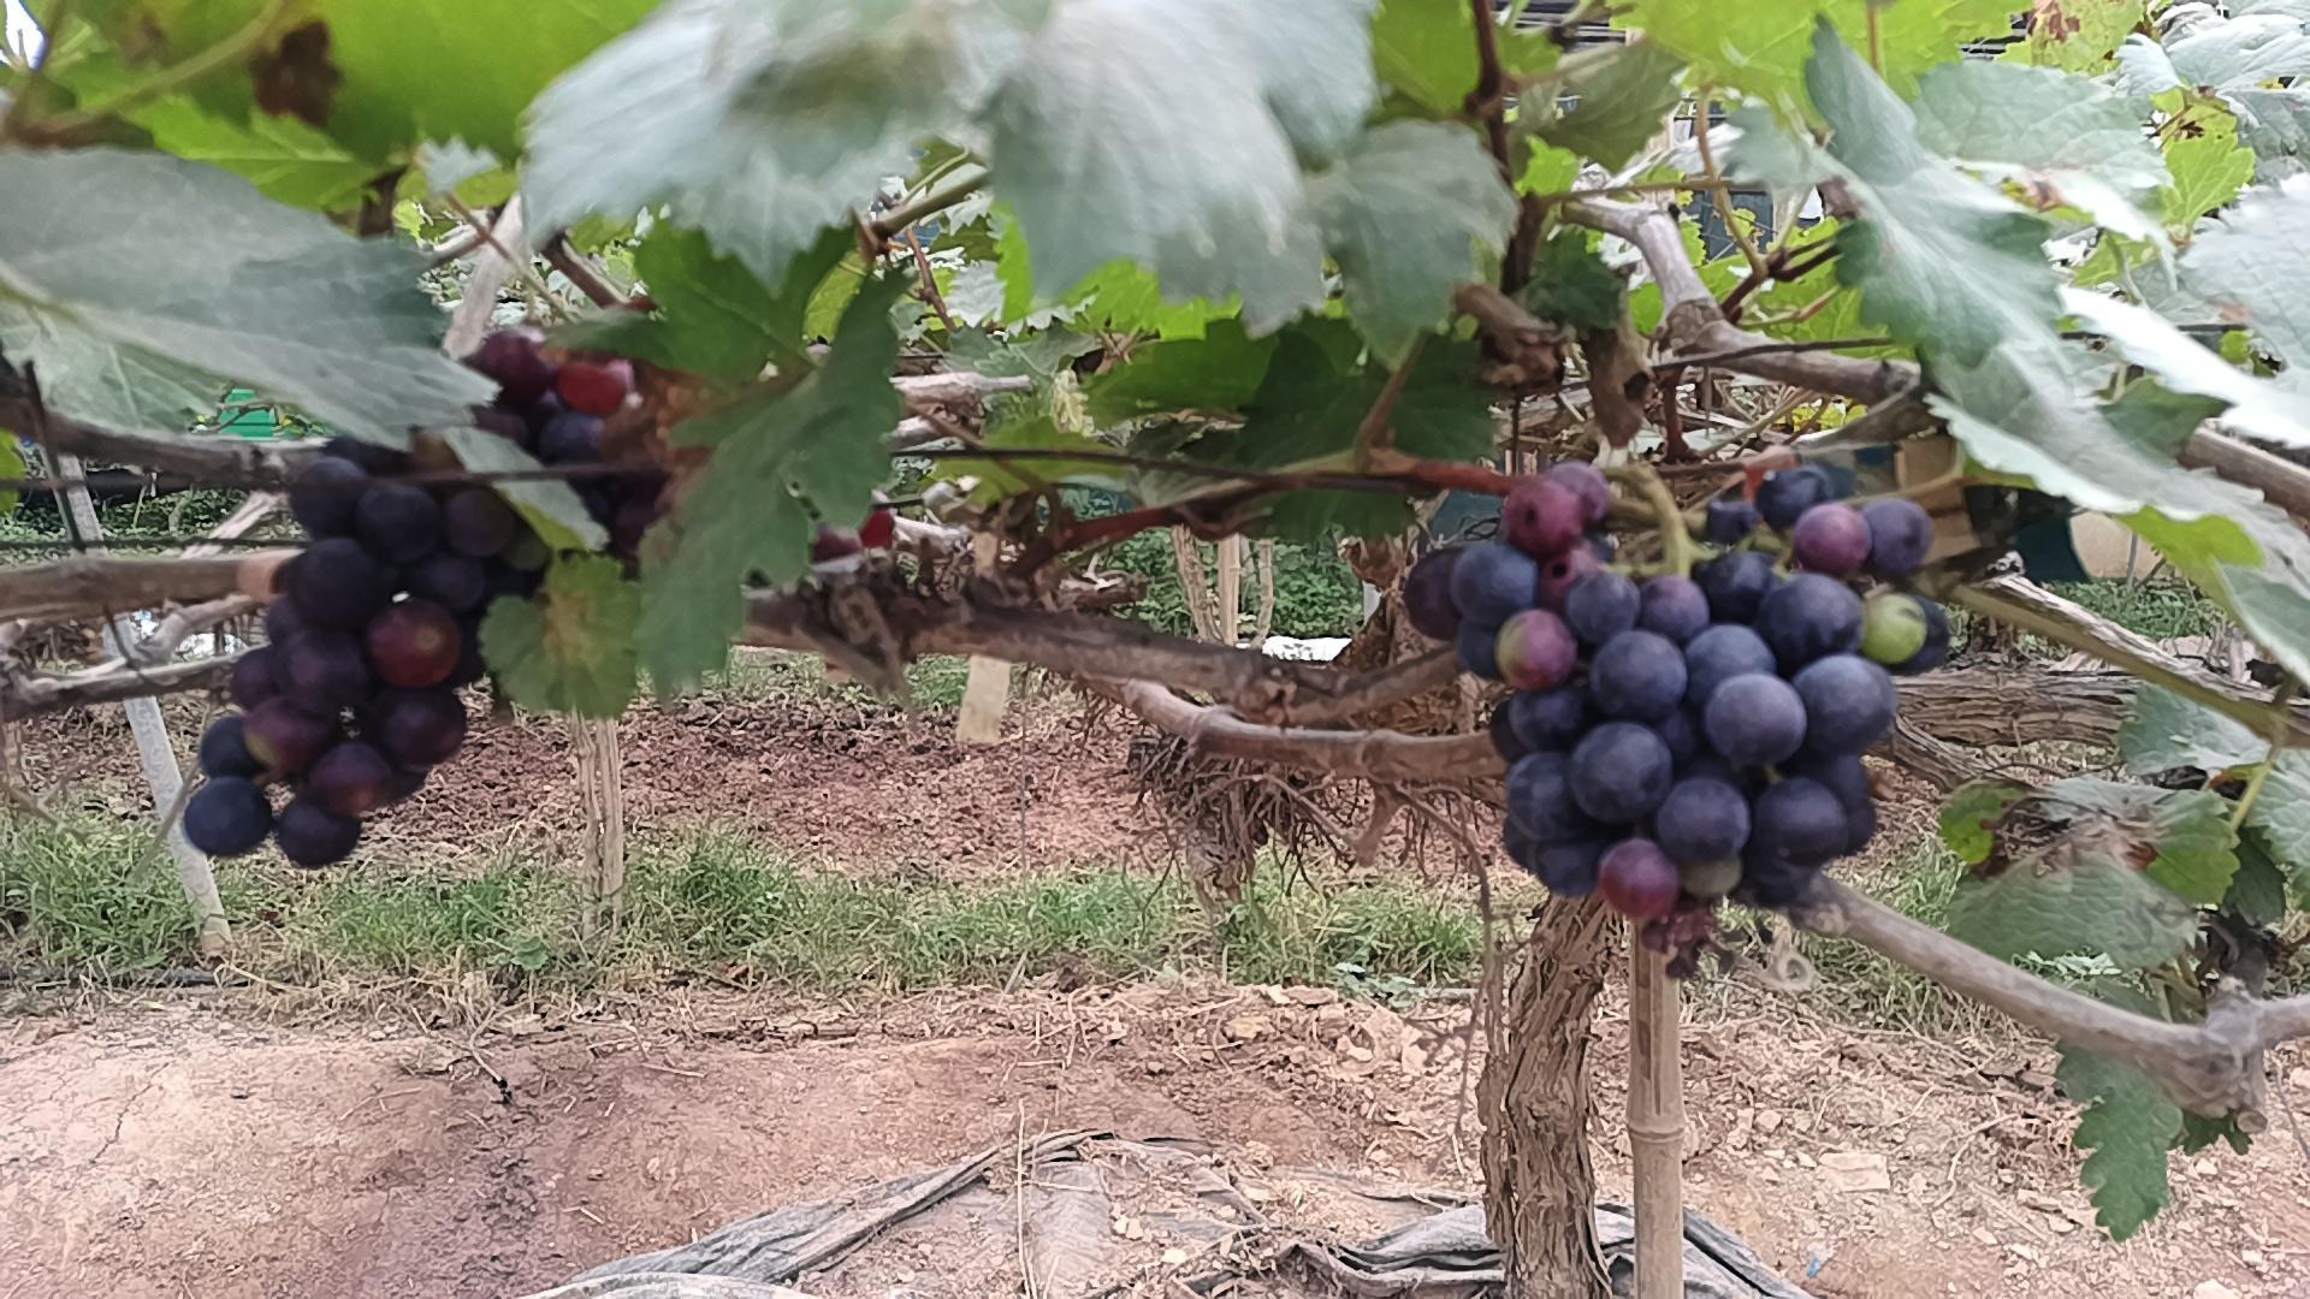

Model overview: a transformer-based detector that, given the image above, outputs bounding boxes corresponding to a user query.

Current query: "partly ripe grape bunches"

[180,331,667,868]
[1409,463,1947,919]
[811,505,894,570]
